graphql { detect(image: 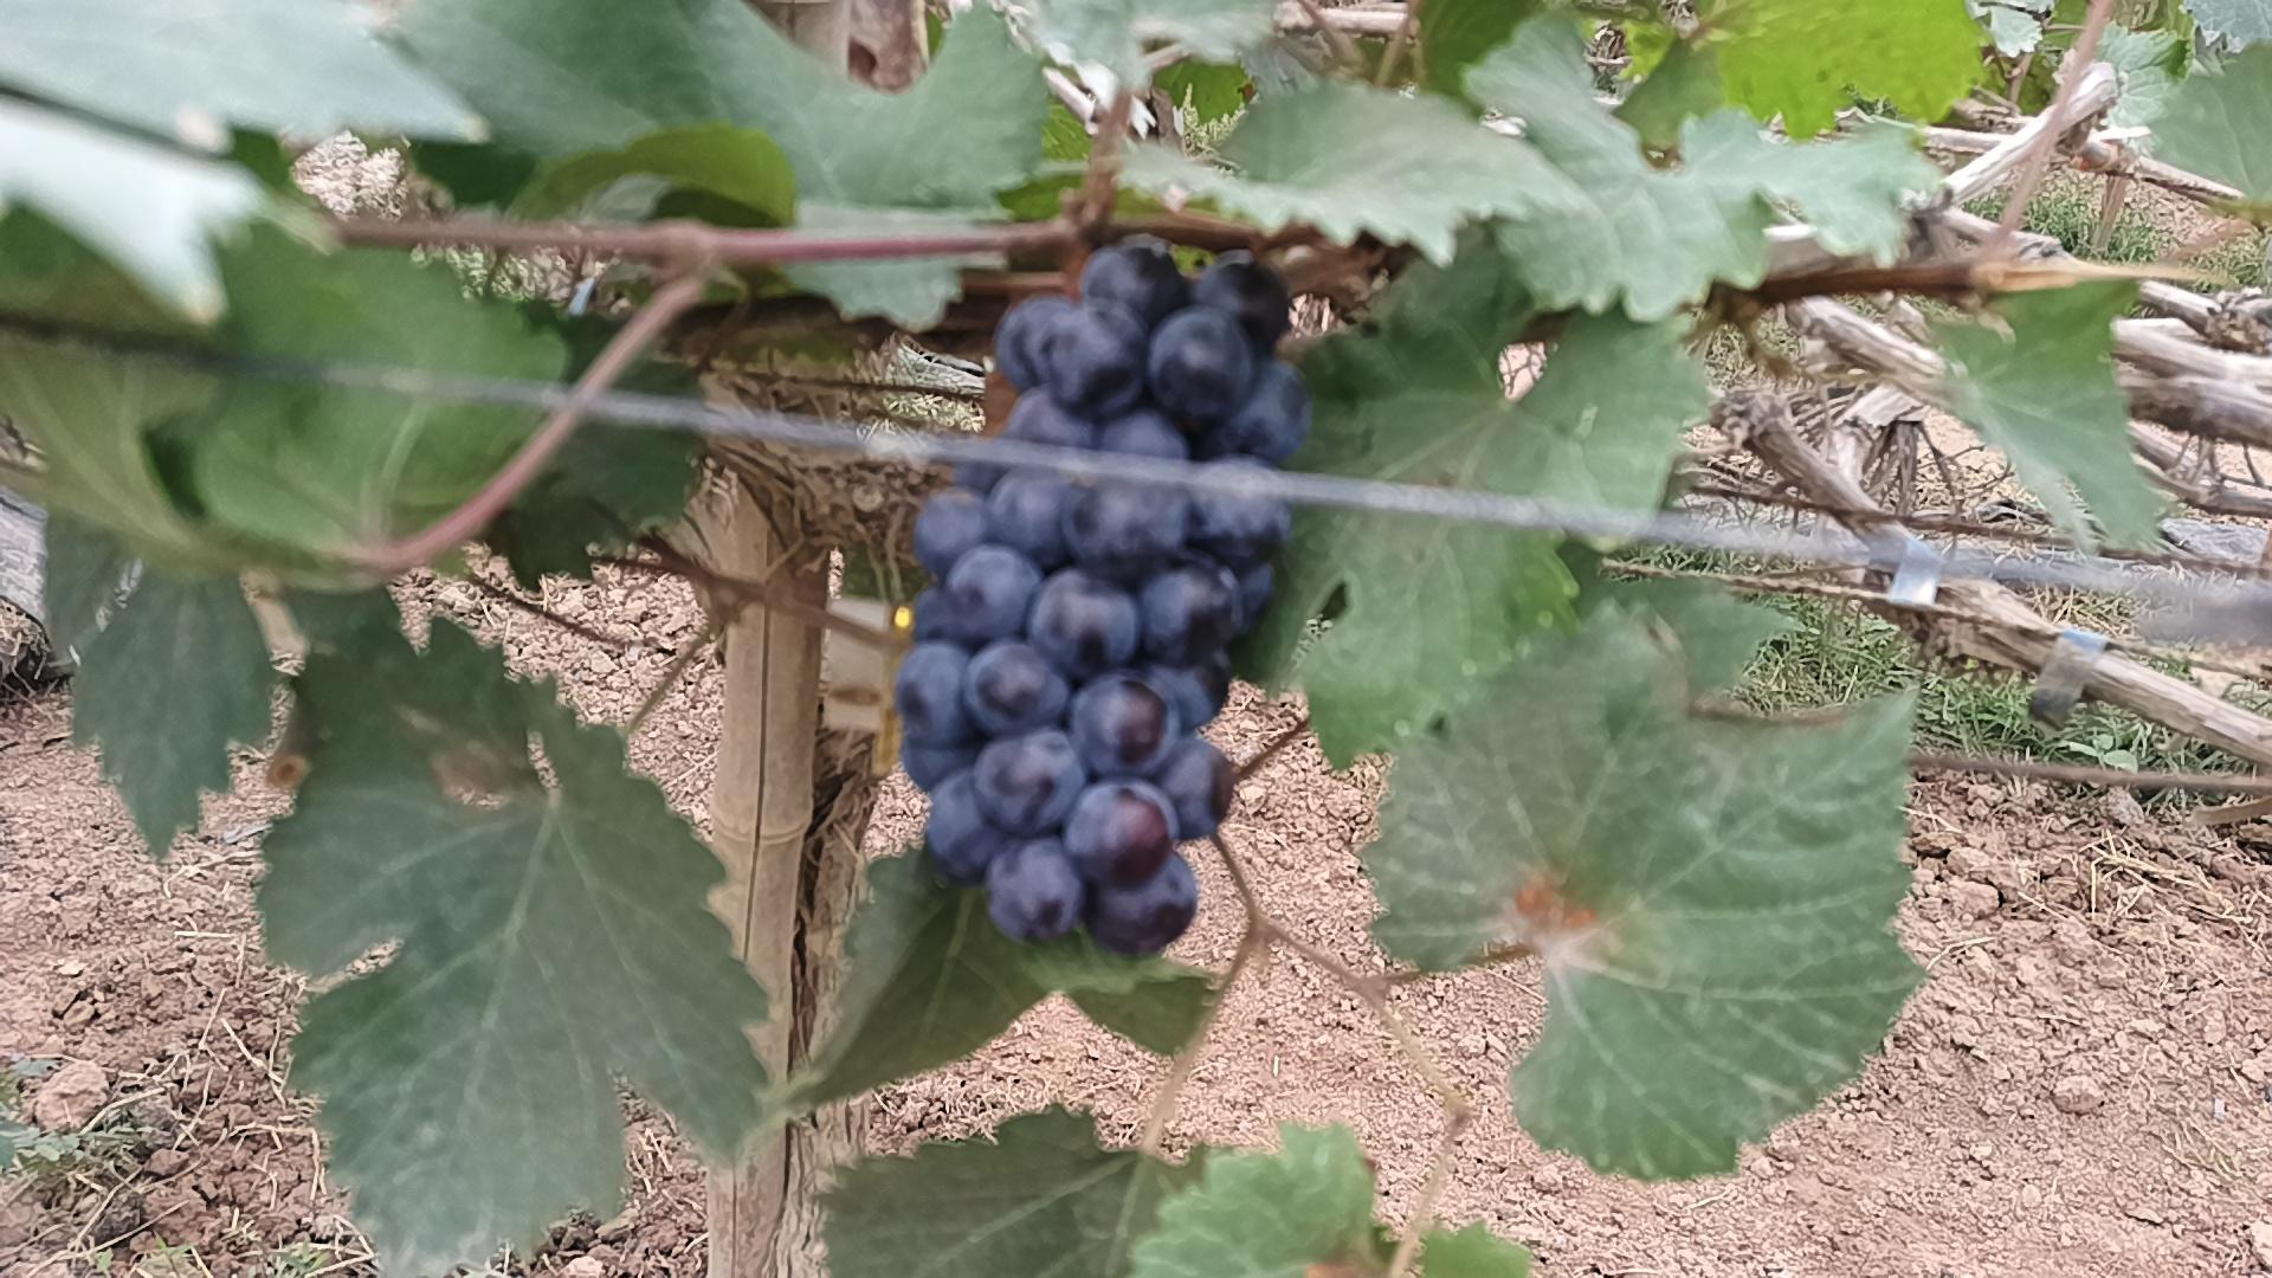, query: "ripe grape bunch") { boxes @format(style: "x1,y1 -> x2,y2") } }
892,237 -> 1312,958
